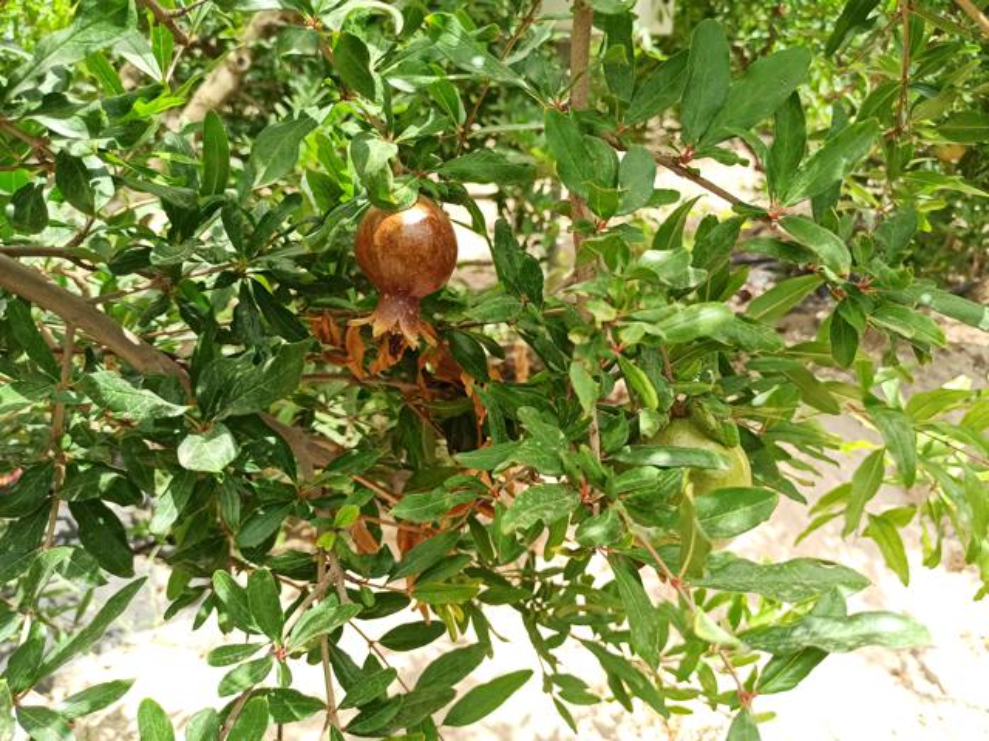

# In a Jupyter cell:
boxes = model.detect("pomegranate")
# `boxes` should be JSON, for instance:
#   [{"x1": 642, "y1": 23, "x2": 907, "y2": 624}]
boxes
[{"x1": 343, "y1": 196, "x2": 456, "y2": 349}]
